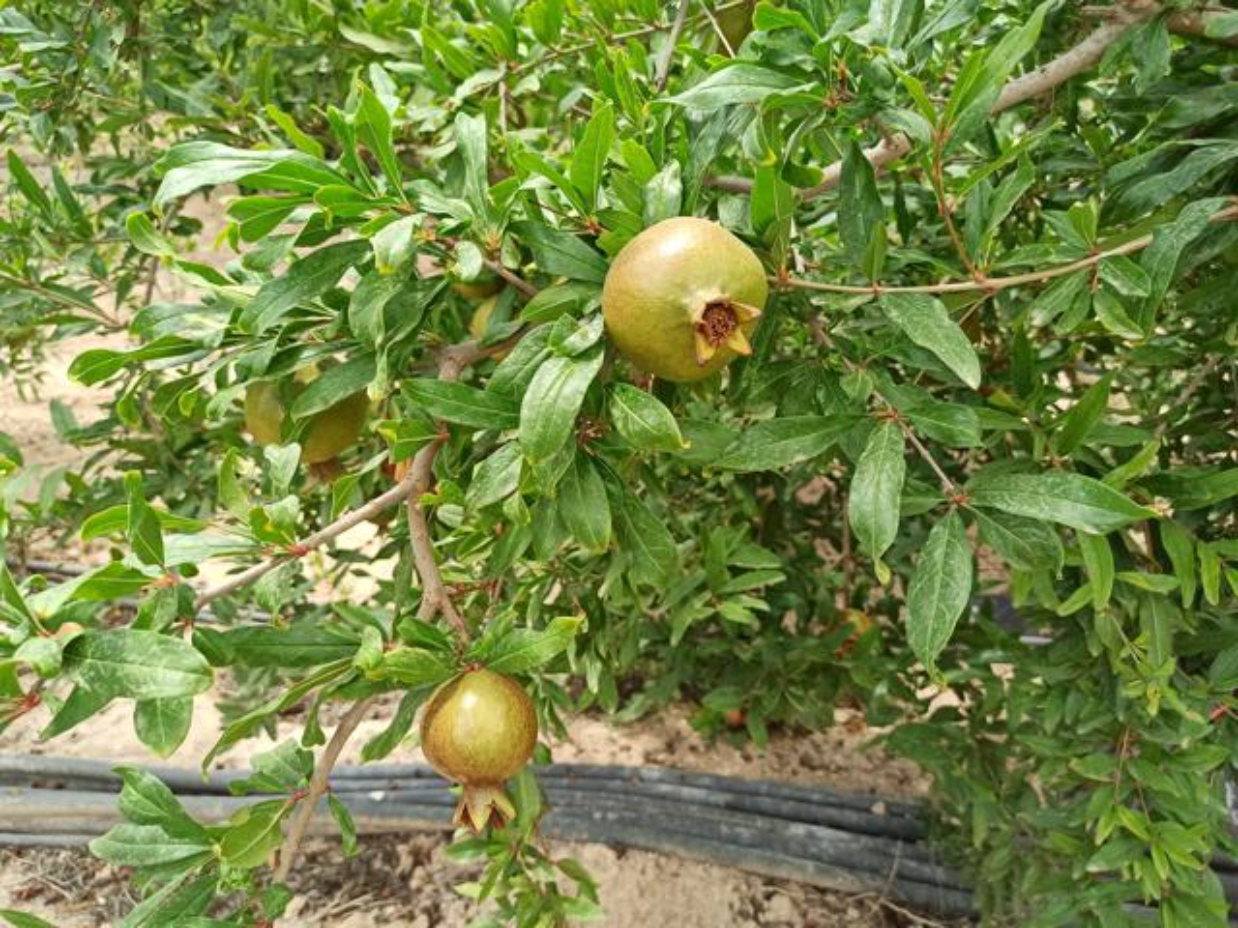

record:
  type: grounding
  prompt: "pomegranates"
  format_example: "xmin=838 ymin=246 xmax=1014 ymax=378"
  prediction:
xmin=840 ymin=607 xmax=872 ymax=655
xmin=244 ymin=354 xmax=369 ymax=485
xmin=600 ymin=215 xmax=768 ymax=385
xmin=416 ymin=669 xmax=538 ymax=835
